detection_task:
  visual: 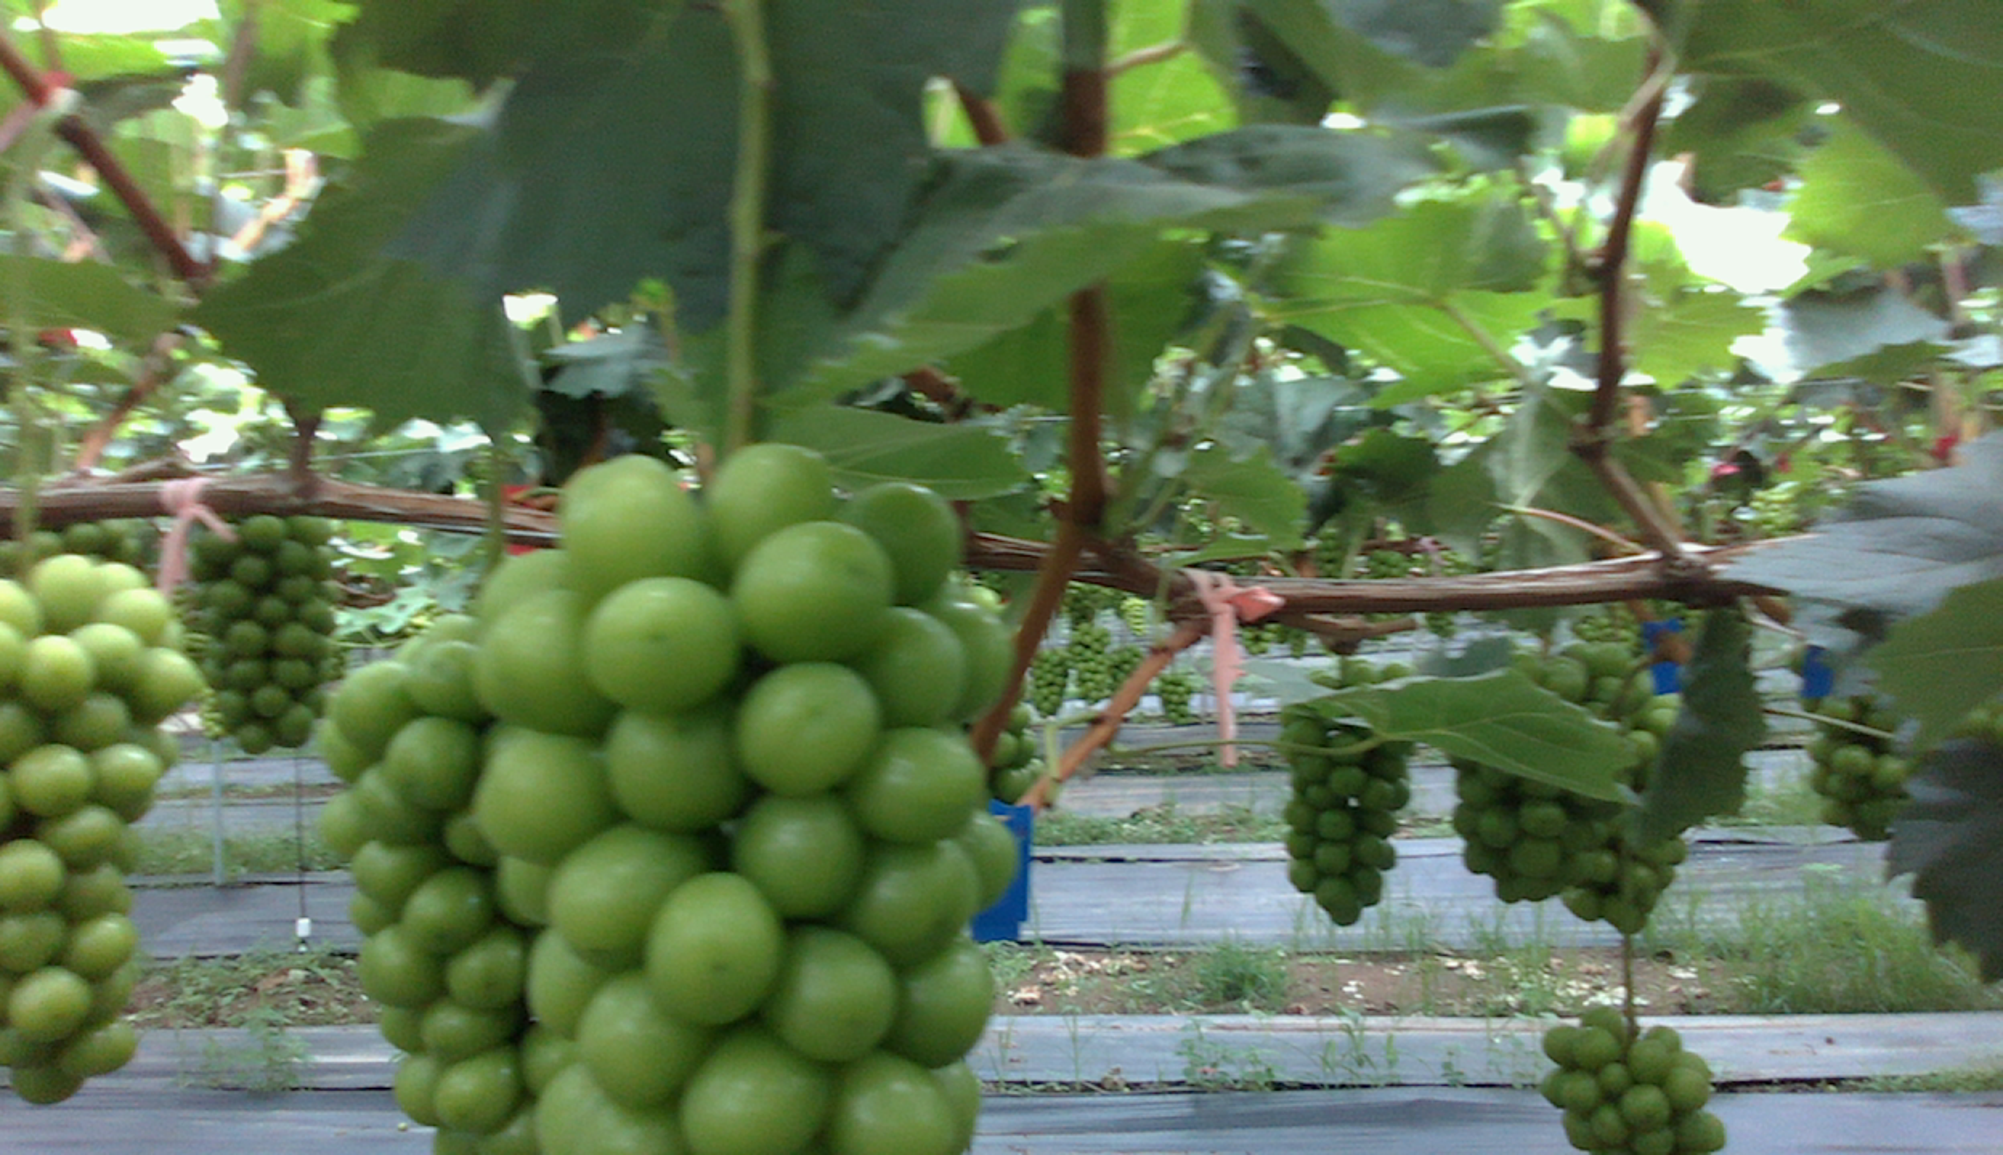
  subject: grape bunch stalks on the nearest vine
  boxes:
[2,385,37,587]
[721,2,772,460]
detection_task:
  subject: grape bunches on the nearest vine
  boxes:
[470,443,1019,1153]
[2,552,205,1105]
[318,614,576,1152]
